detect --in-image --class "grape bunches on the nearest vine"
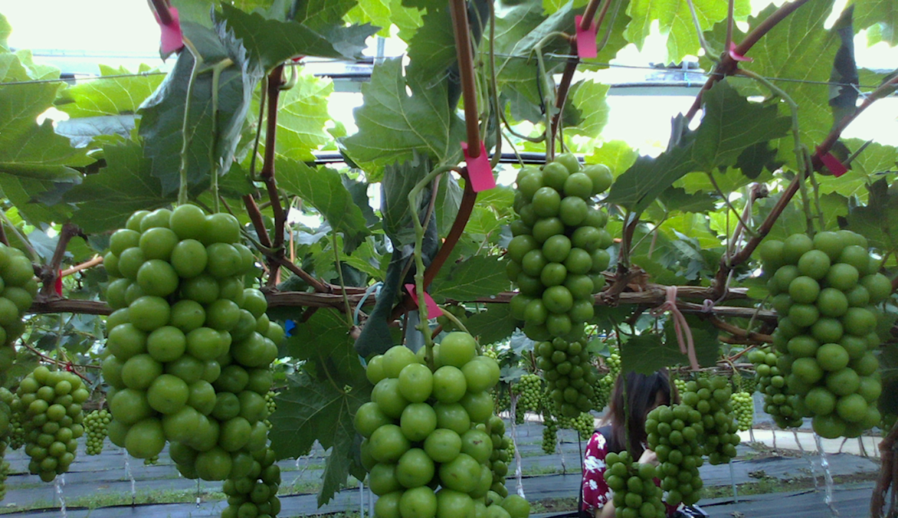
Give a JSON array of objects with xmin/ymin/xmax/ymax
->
[
  {"xmin": 101, "ymin": 204, "xmax": 253, "ymax": 460},
  {"xmin": 504, "ymin": 153, "xmax": 612, "ymax": 342},
  {"xmin": 761, "ymin": 231, "xmax": 892, "ymax": 439},
  {"xmin": 353, "ymin": 331, "xmax": 500, "ymax": 517},
  {"xmin": 168, "ymin": 288, "xmax": 284, "ymax": 482}
]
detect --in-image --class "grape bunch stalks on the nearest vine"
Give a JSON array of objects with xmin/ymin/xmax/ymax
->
[
  {"xmin": 535, "ymin": 30, "xmax": 573, "ymax": 167},
  {"xmin": 209, "ymin": 57, "xmax": 232, "ymax": 215},
  {"xmin": 178, "ymin": 32, "xmax": 204, "ymax": 206},
  {"xmin": 725, "ymin": 68, "xmax": 817, "ymax": 239},
  {"xmin": 409, "ymin": 164, "xmax": 466, "ymax": 373}
]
